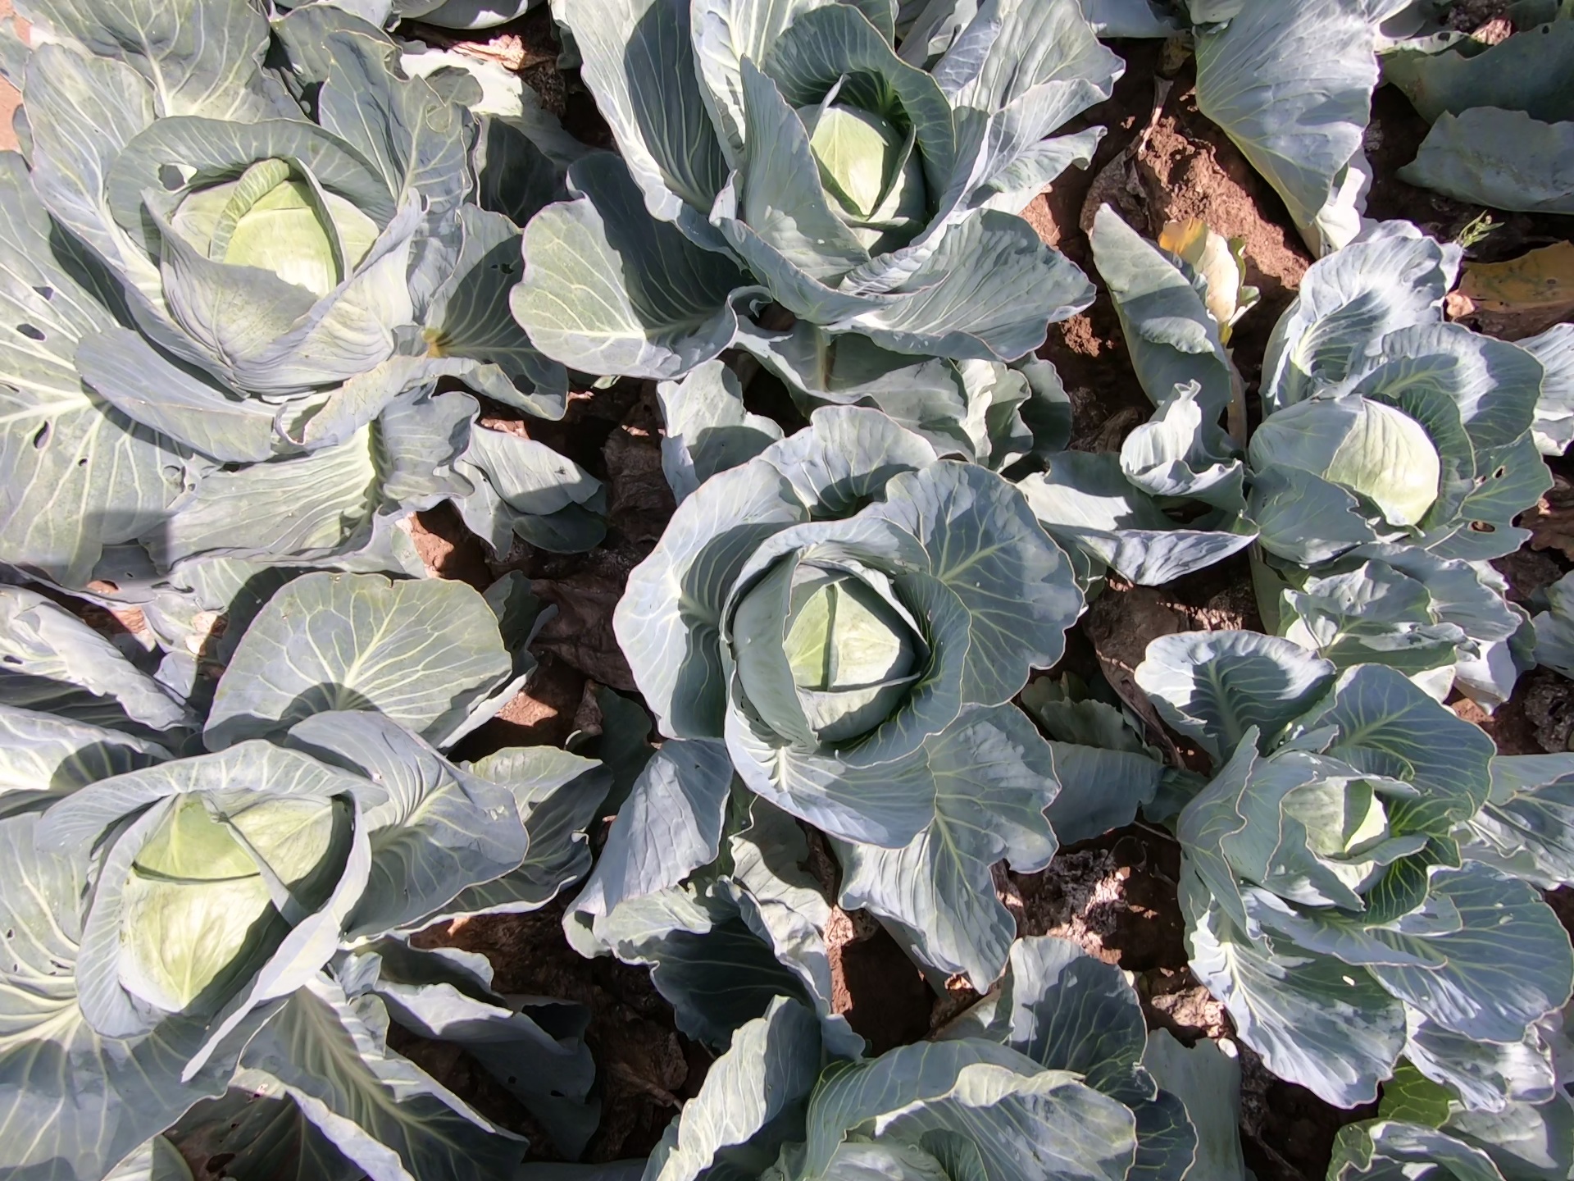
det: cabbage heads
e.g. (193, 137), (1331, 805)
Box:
(82, 768), (368, 1015)
(1240, 749), (1394, 908)
(730, 553), (917, 742)
(753, 99), (926, 287)
(161, 170), (393, 384)
(1262, 392), (1441, 545)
